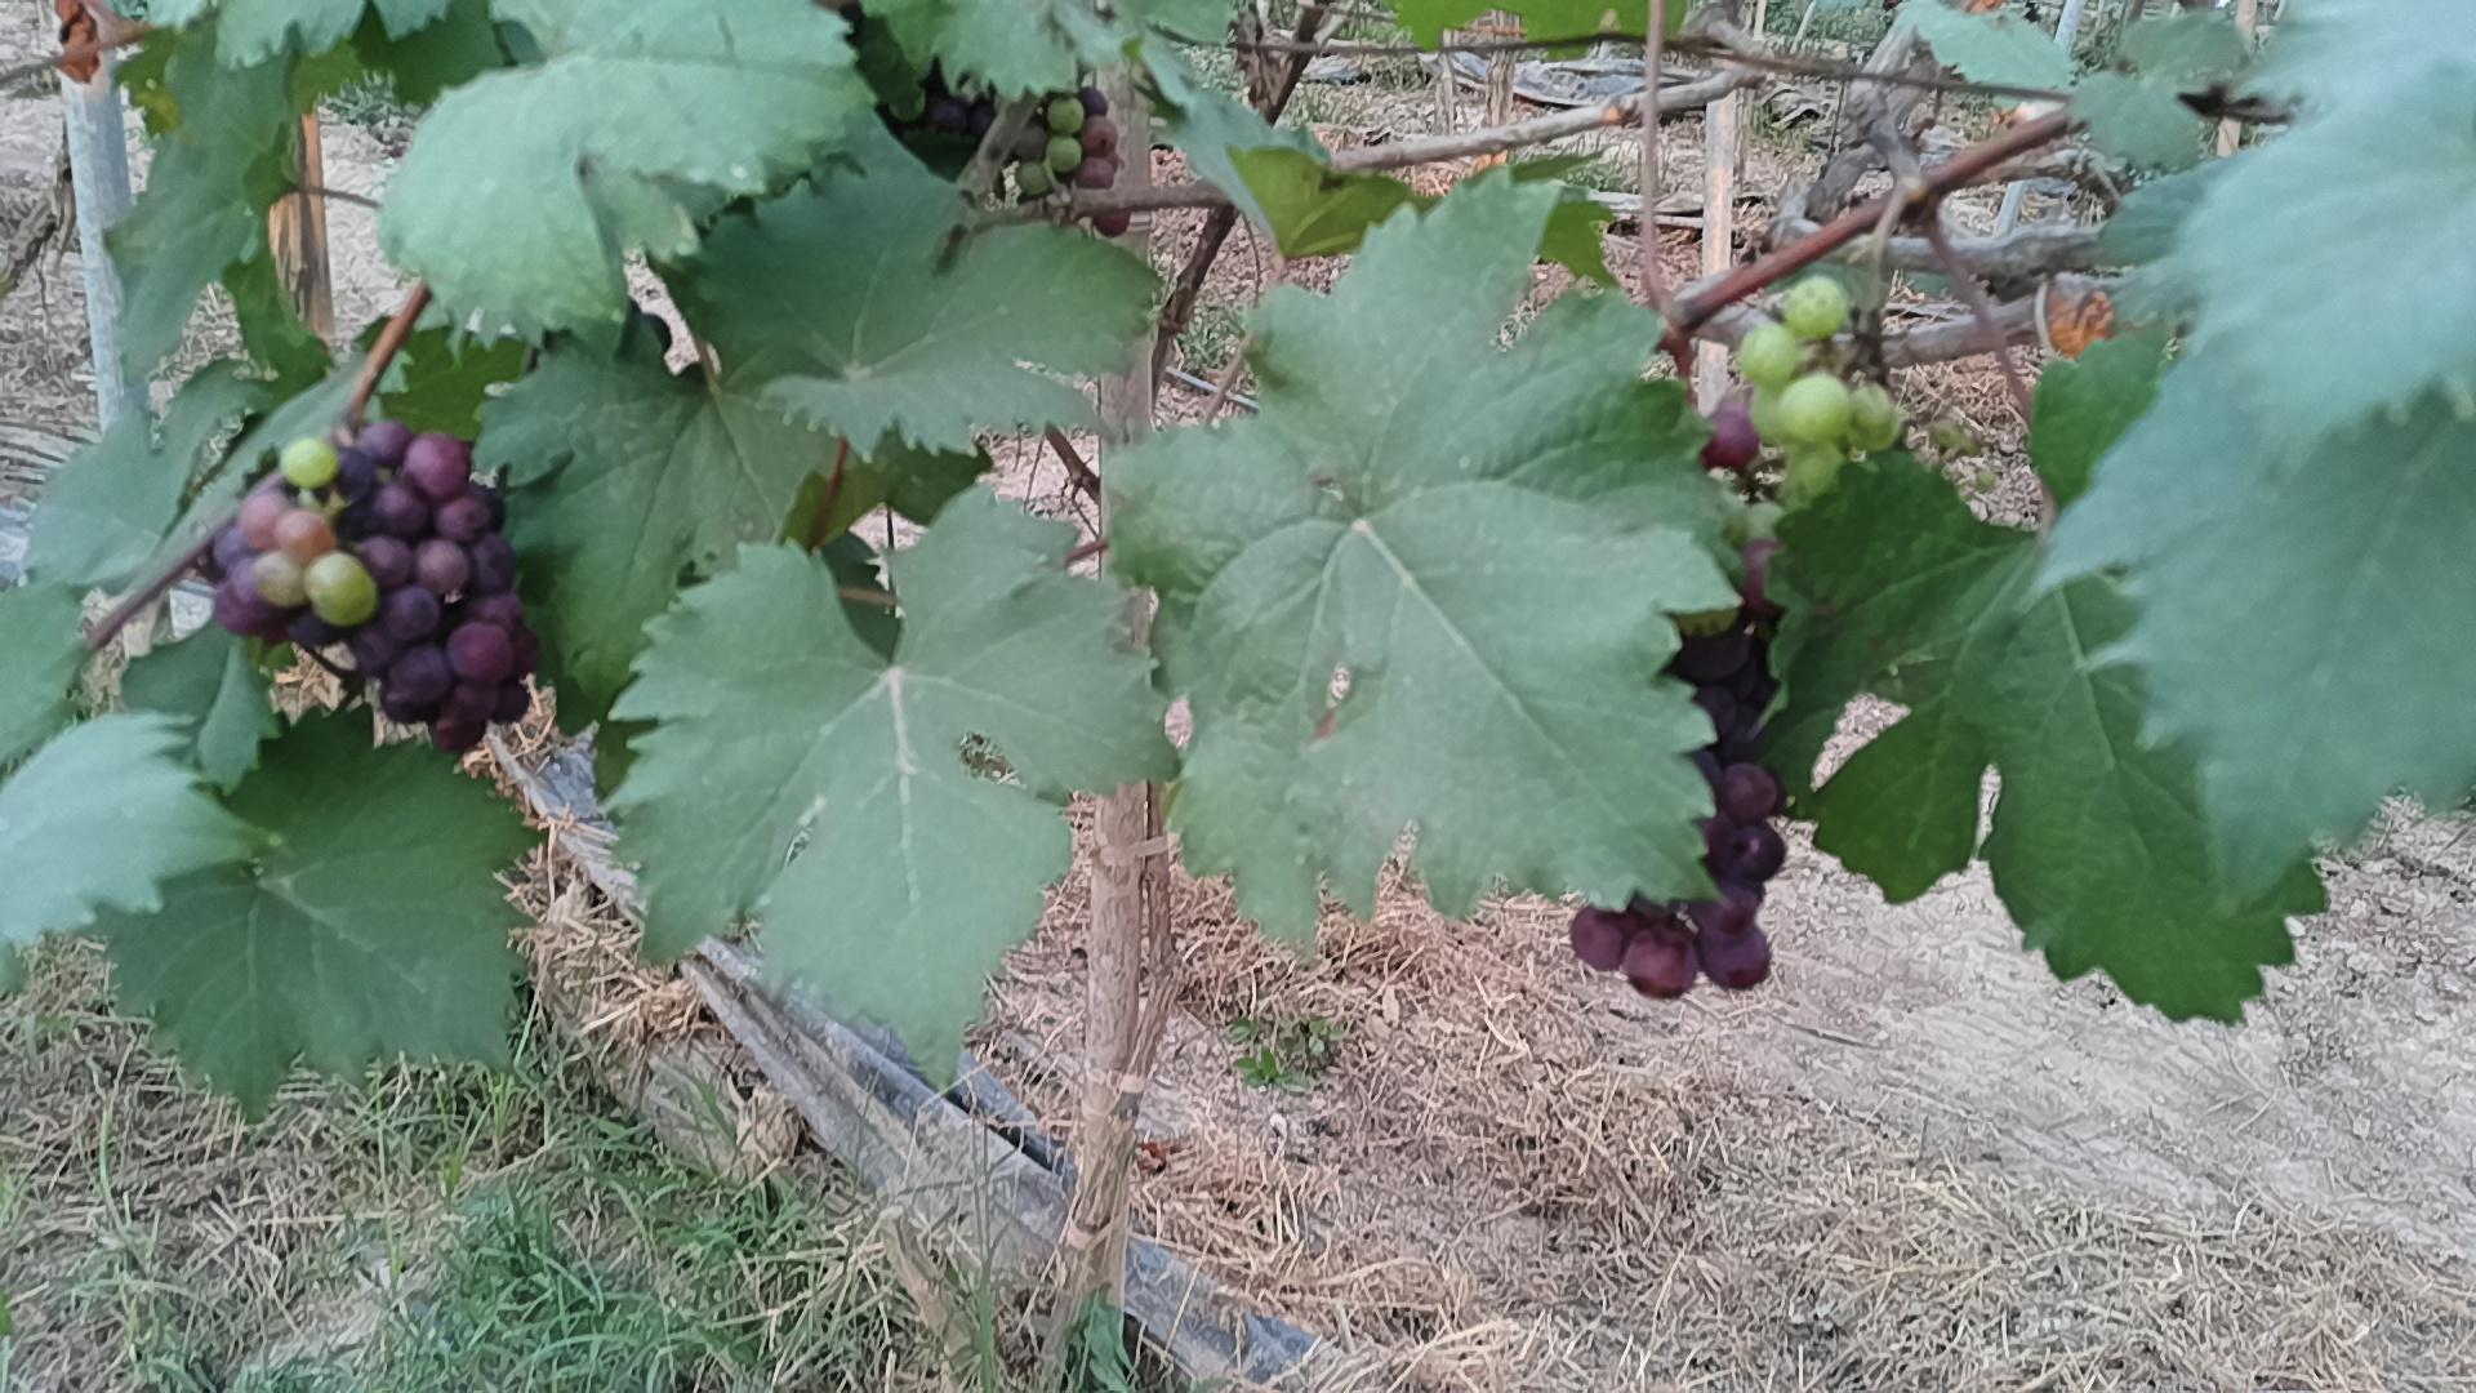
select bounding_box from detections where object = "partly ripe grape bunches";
[1569,281,1903,997]
[191,420,538,752]
[890,74,1128,236]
